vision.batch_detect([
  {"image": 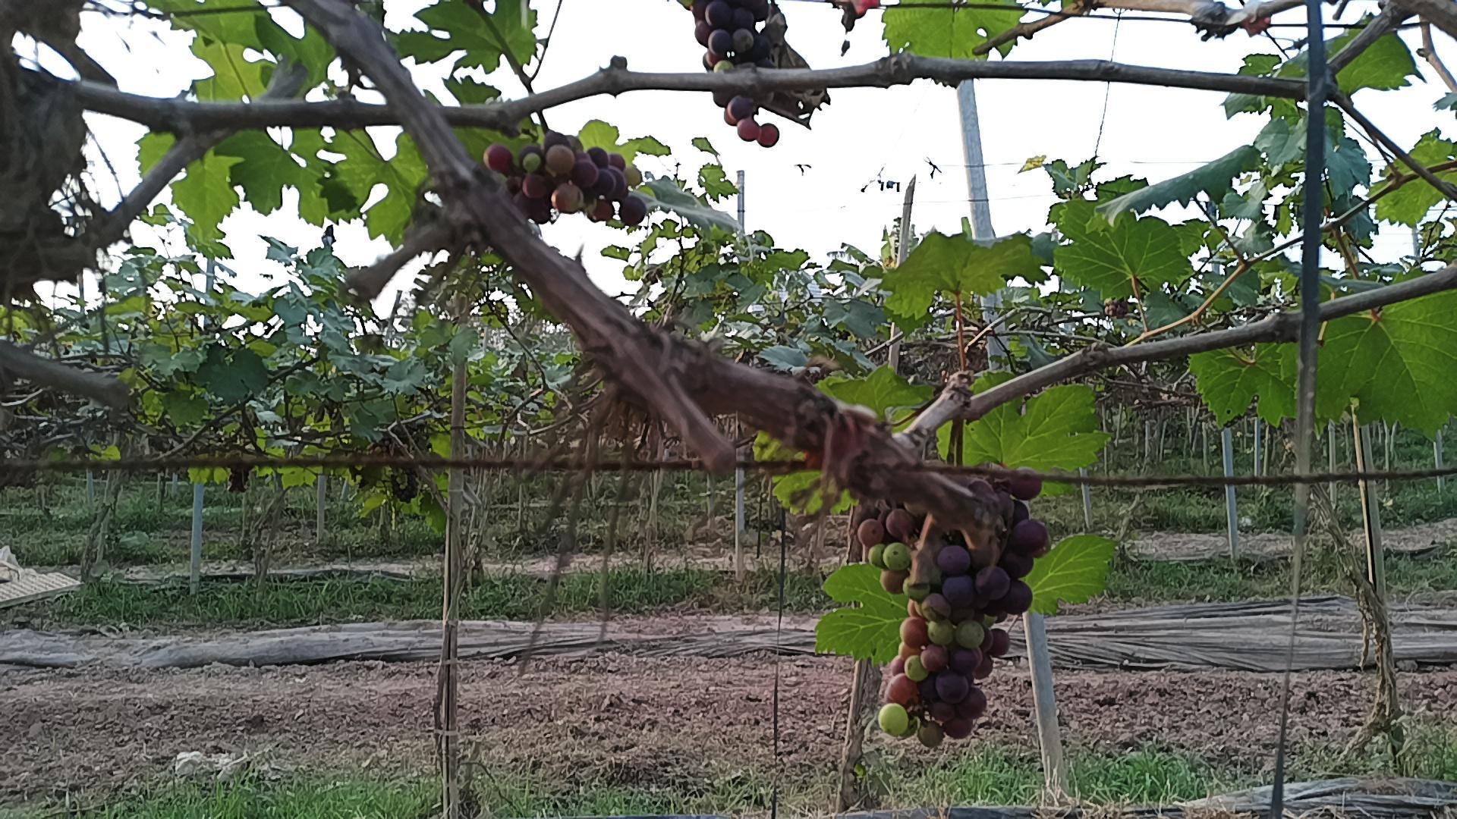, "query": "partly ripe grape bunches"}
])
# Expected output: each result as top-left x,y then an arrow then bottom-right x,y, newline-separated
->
483,130 -> 647,226
679,0 -> 788,148
856,466 -> 1050,747
1103,297 -> 1138,318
